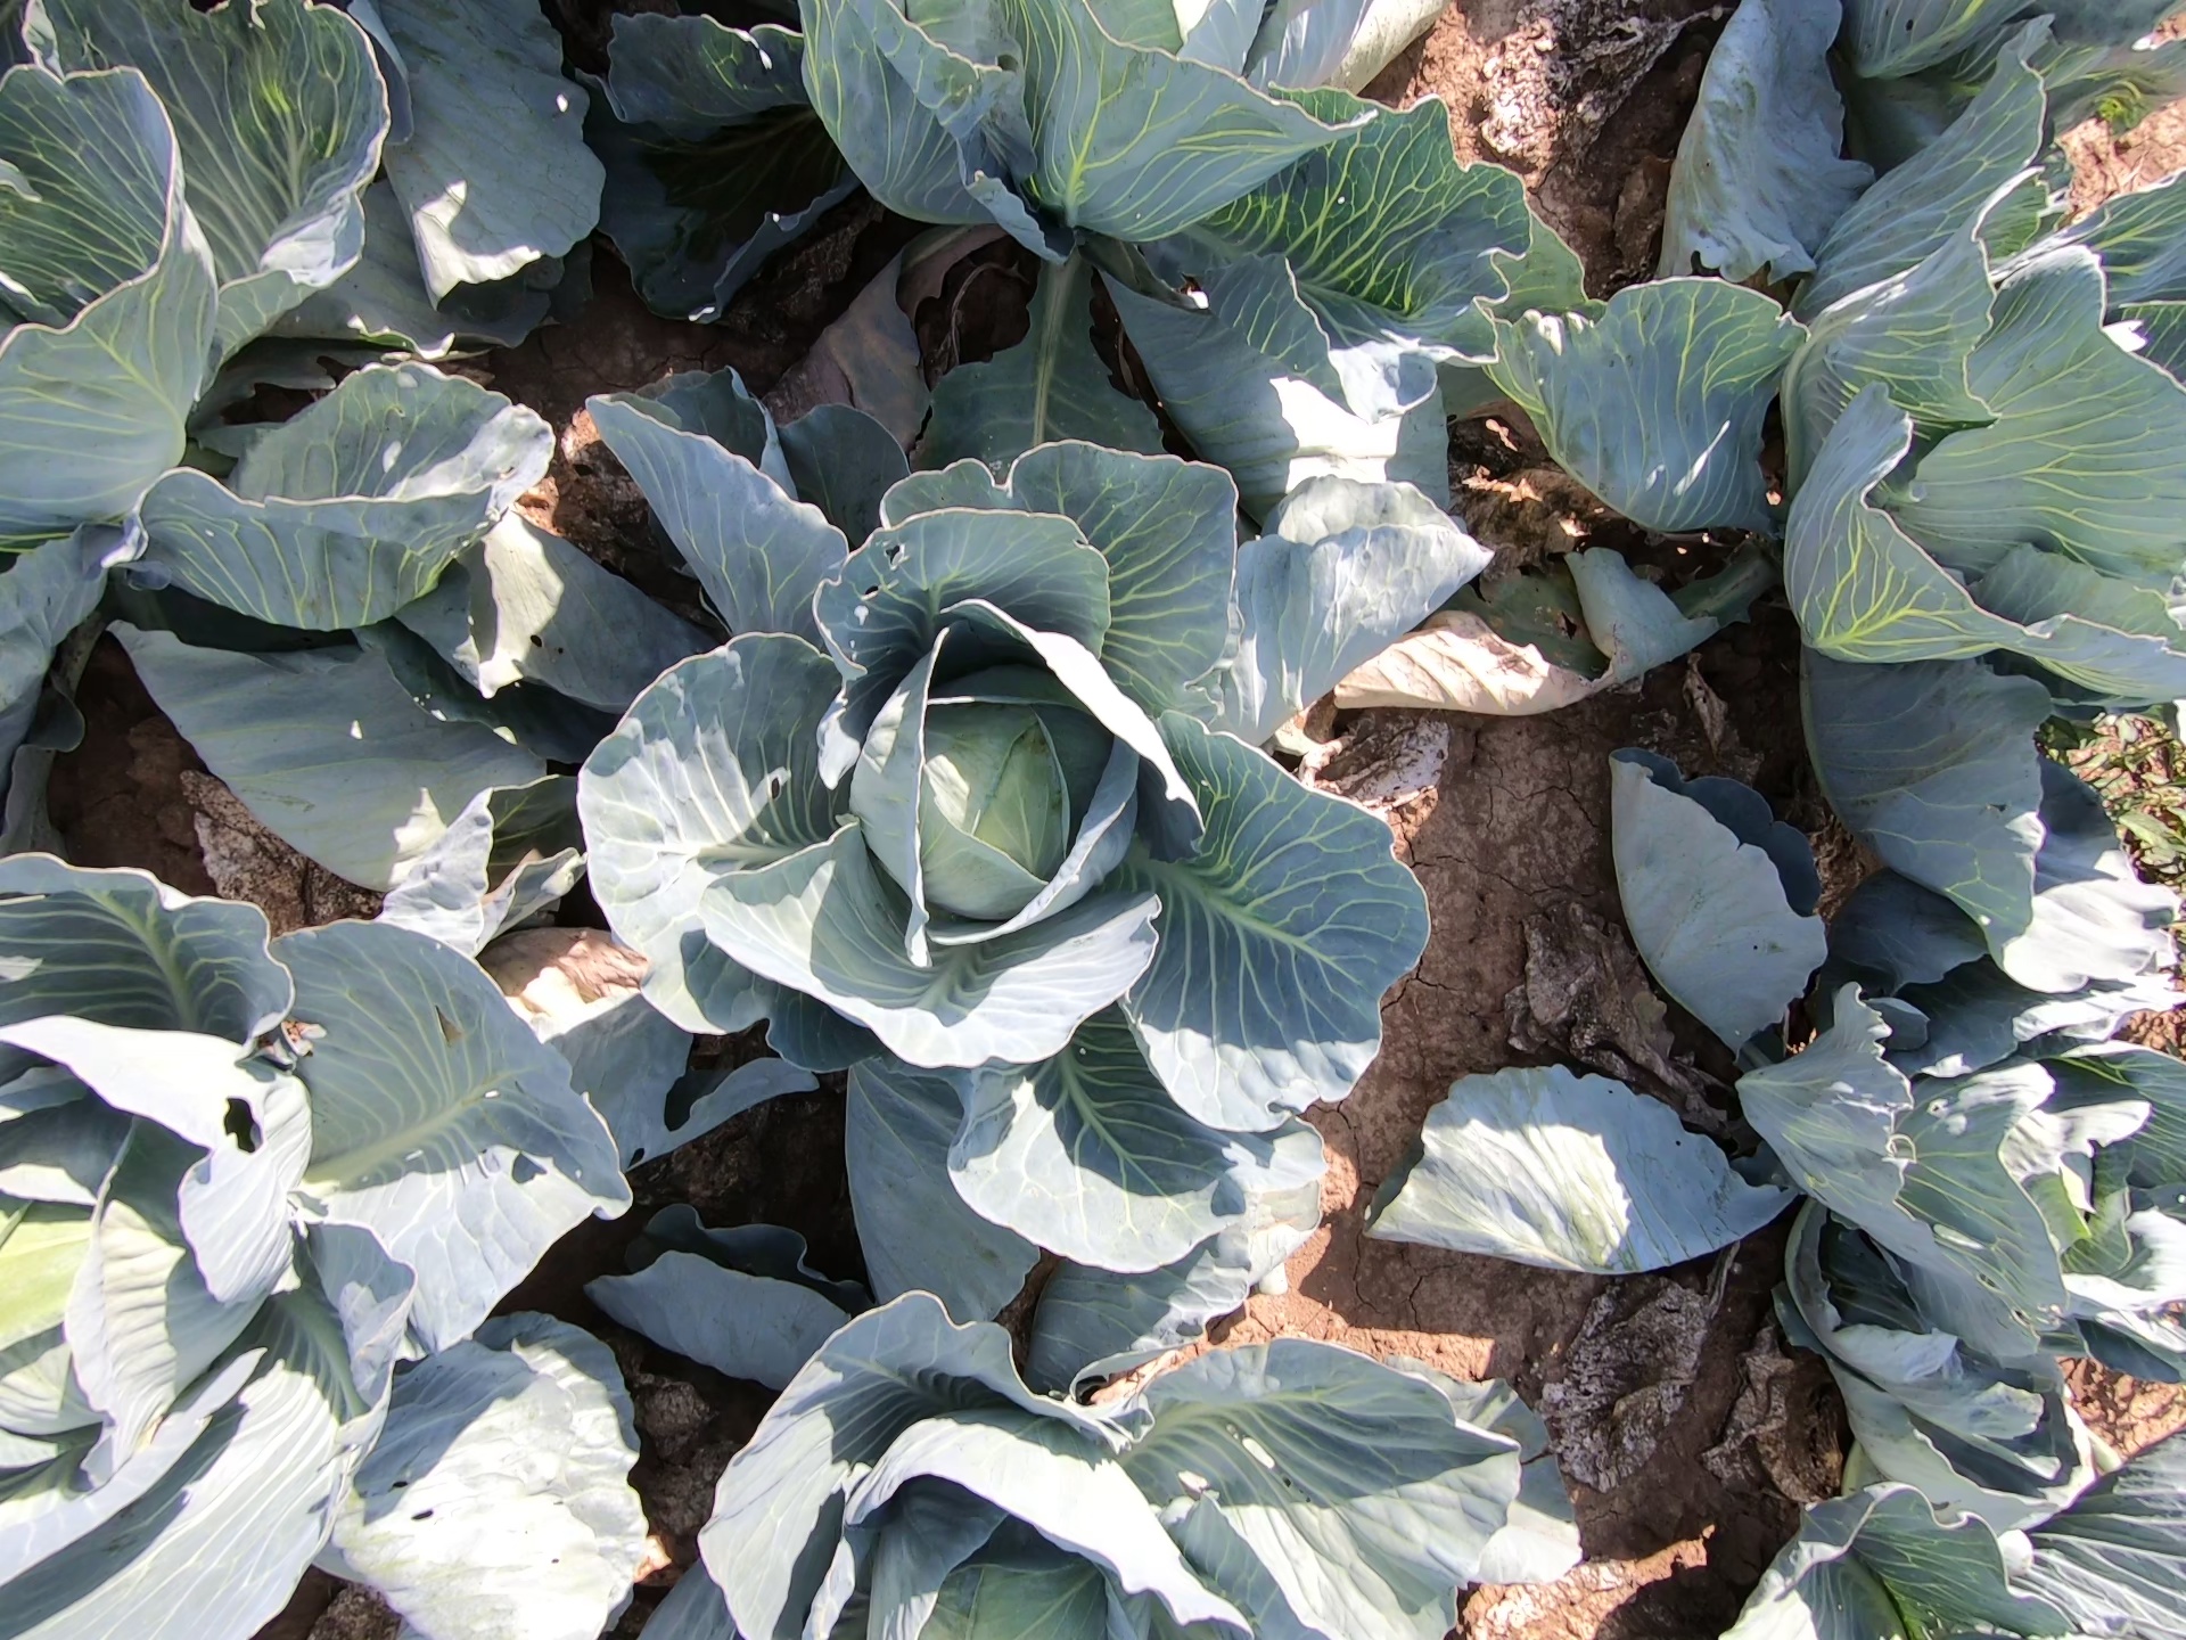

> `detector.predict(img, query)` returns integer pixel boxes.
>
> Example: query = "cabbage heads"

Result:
[1931,1091,2092,1258]
[870,1448,1144,1640]
[0,1096,274,1436]
[891,669,1132,918]
[1044,7,1260,124]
